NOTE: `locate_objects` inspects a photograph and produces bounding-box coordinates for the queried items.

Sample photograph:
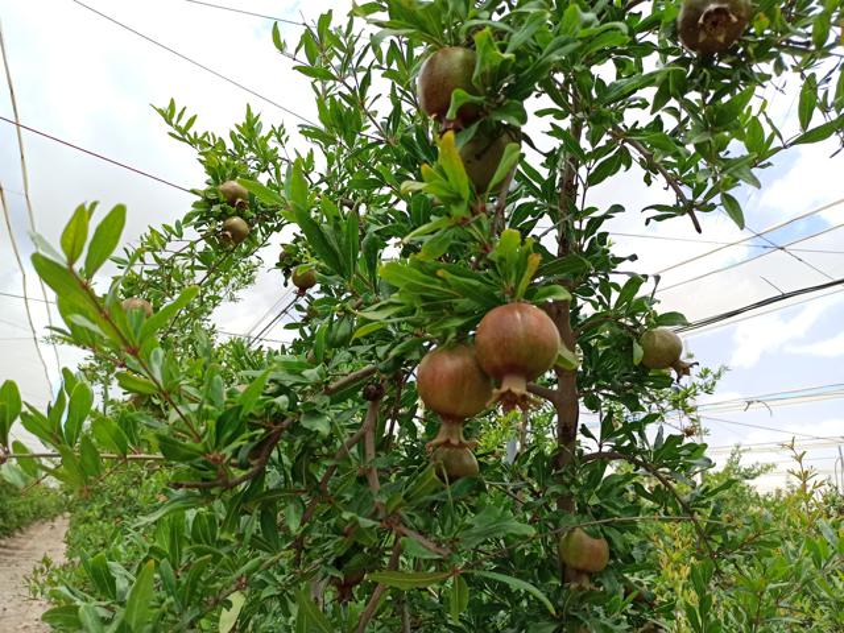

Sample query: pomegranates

[222,215,251,244]
[558,527,611,592]
[120,297,153,318]
[219,181,249,212]
[677,0,750,53]
[330,570,365,607]
[458,127,521,194]
[430,448,480,485]
[418,346,492,454]
[417,46,481,137]
[640,328,699,385]
[473,302,560,413]
[291,269,315,298]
